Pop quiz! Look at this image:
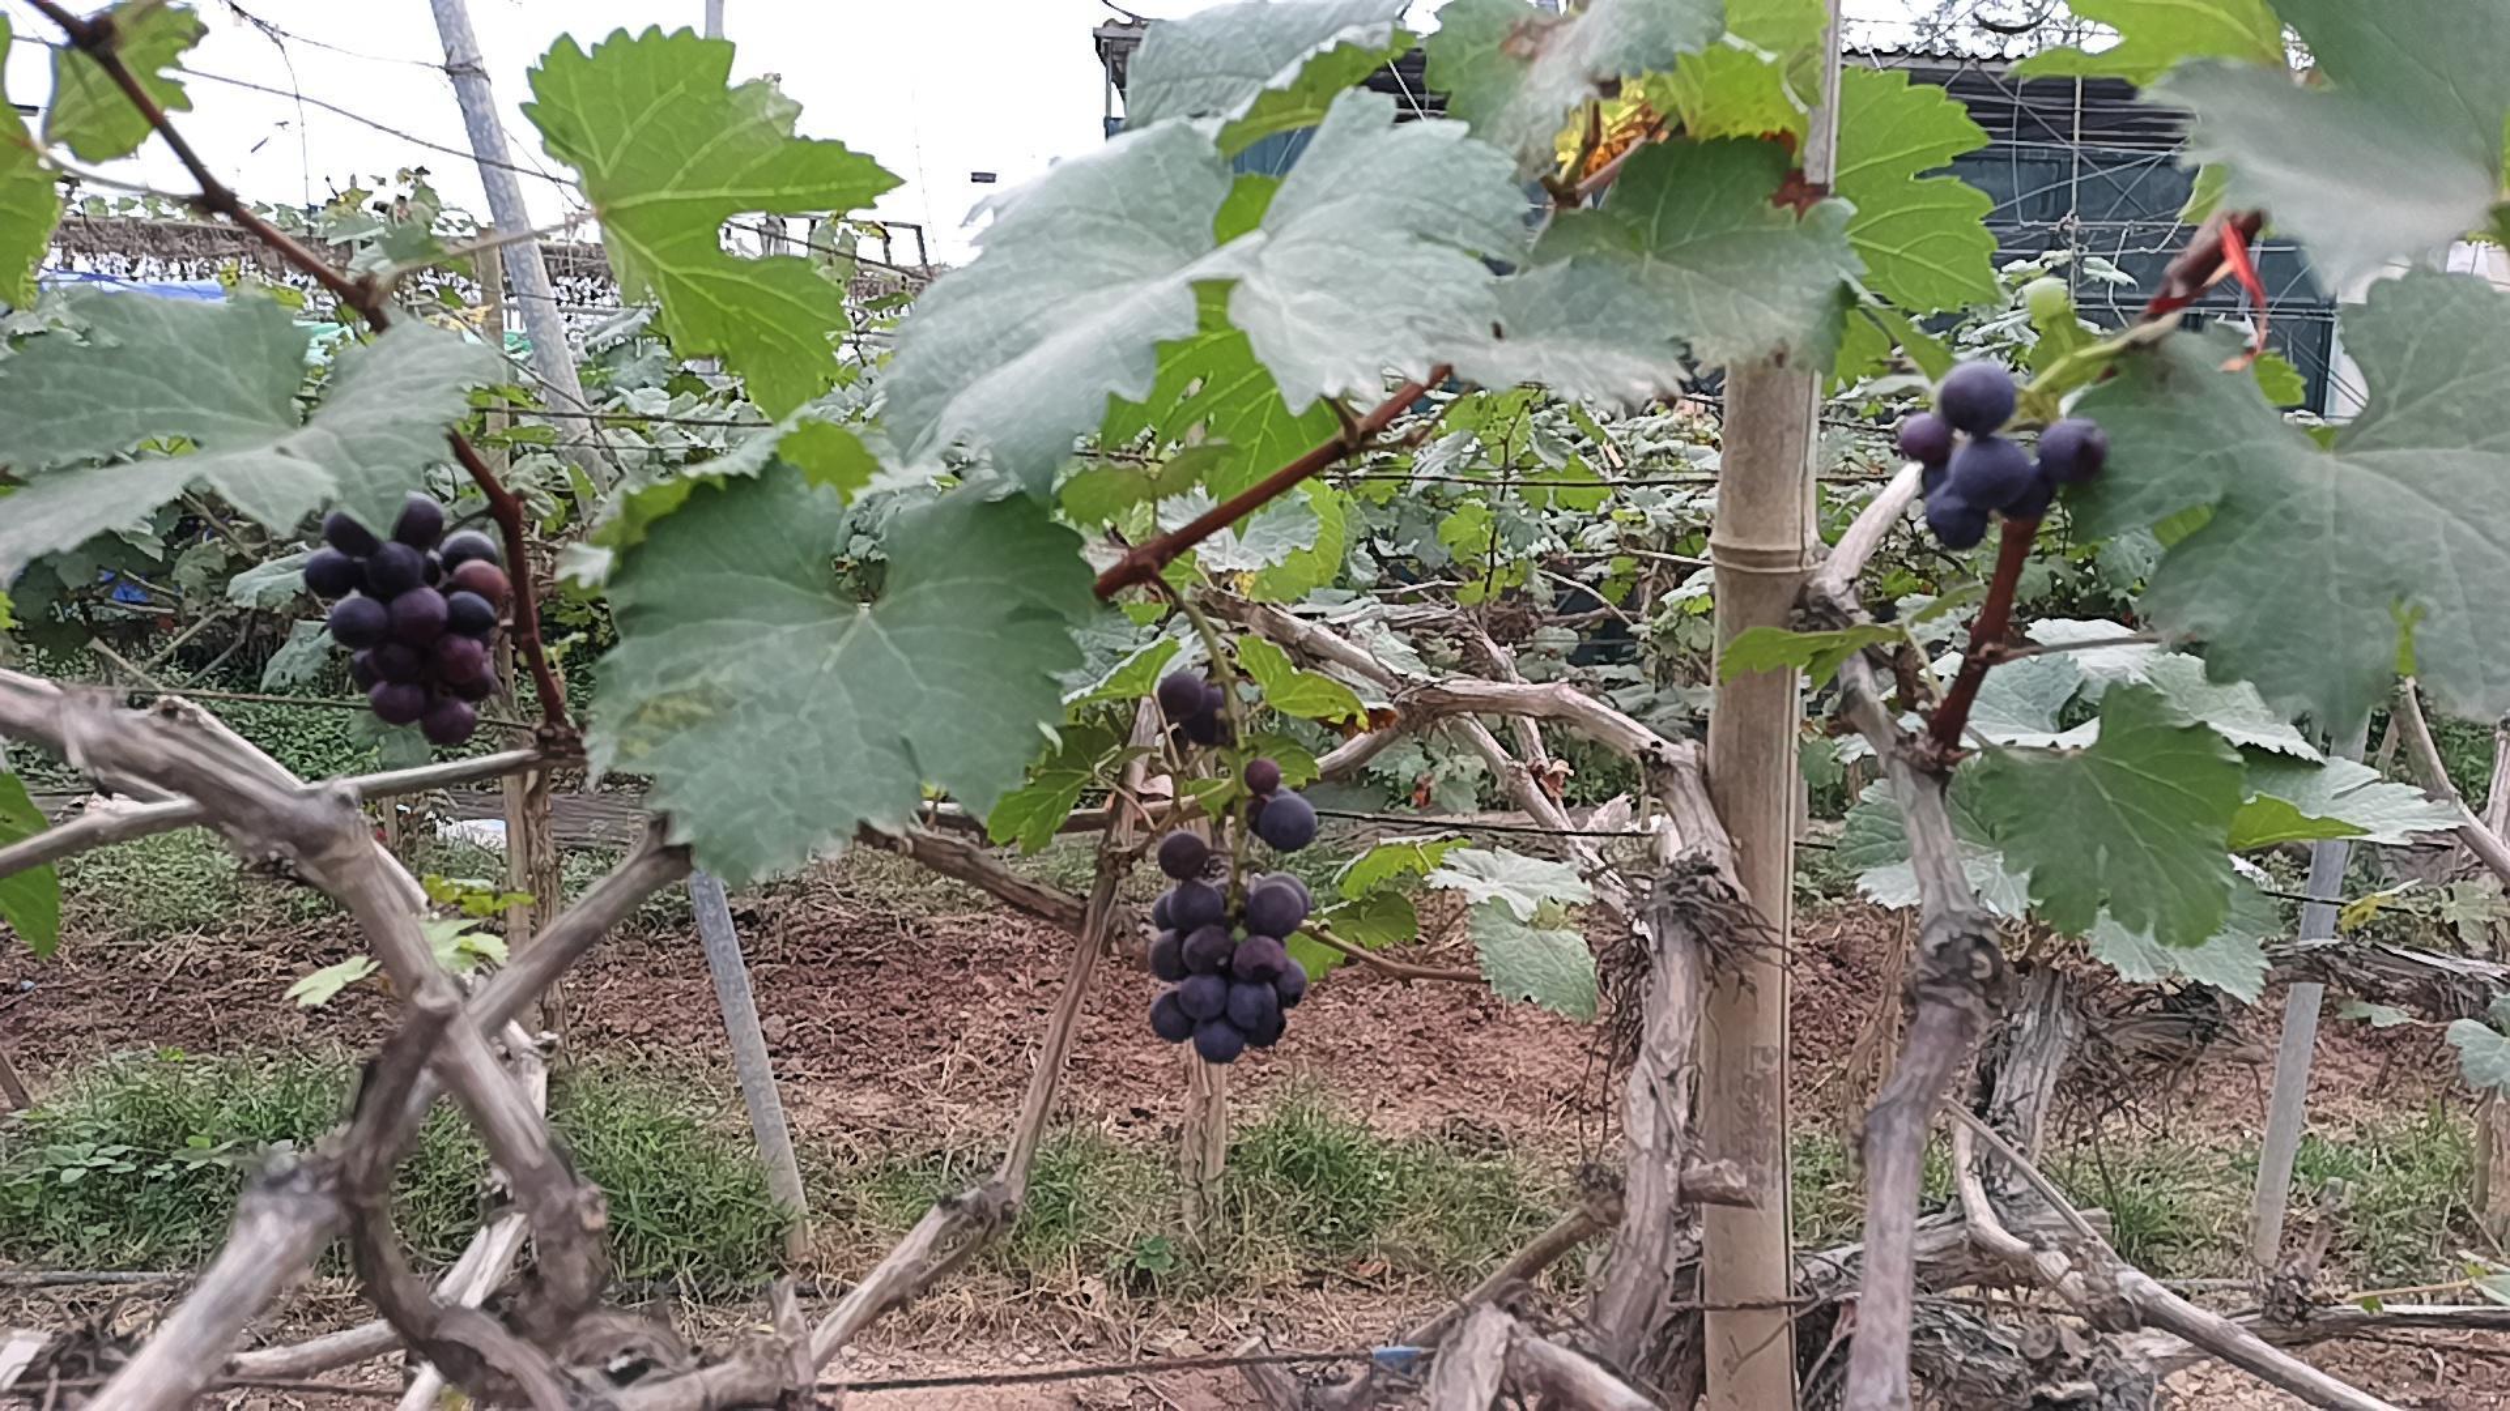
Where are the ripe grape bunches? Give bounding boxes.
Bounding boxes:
[1150,670,1318,1063]
[1897,359,2107,550]
[305,493,510,743]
